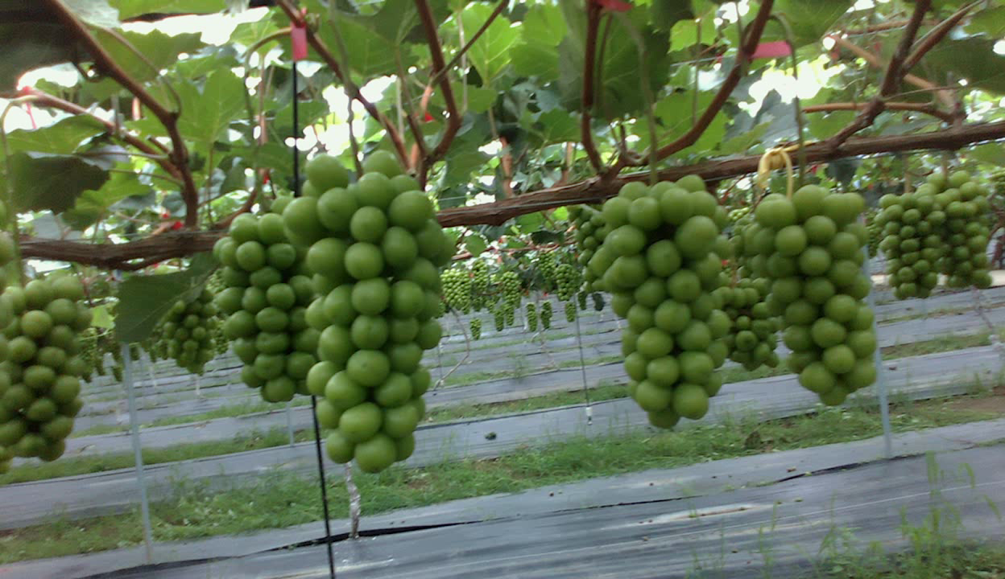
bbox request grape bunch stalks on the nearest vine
[239,29,284,211]
[325,2,363,179]
[616,14,657,181]
[0,92,83,284]
[794,101,807,185]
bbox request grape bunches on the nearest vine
[212,196,318,403]
[748,184,877,404]
[279,150,453,474]
[0,276,91,462]
[589,174,734,429]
